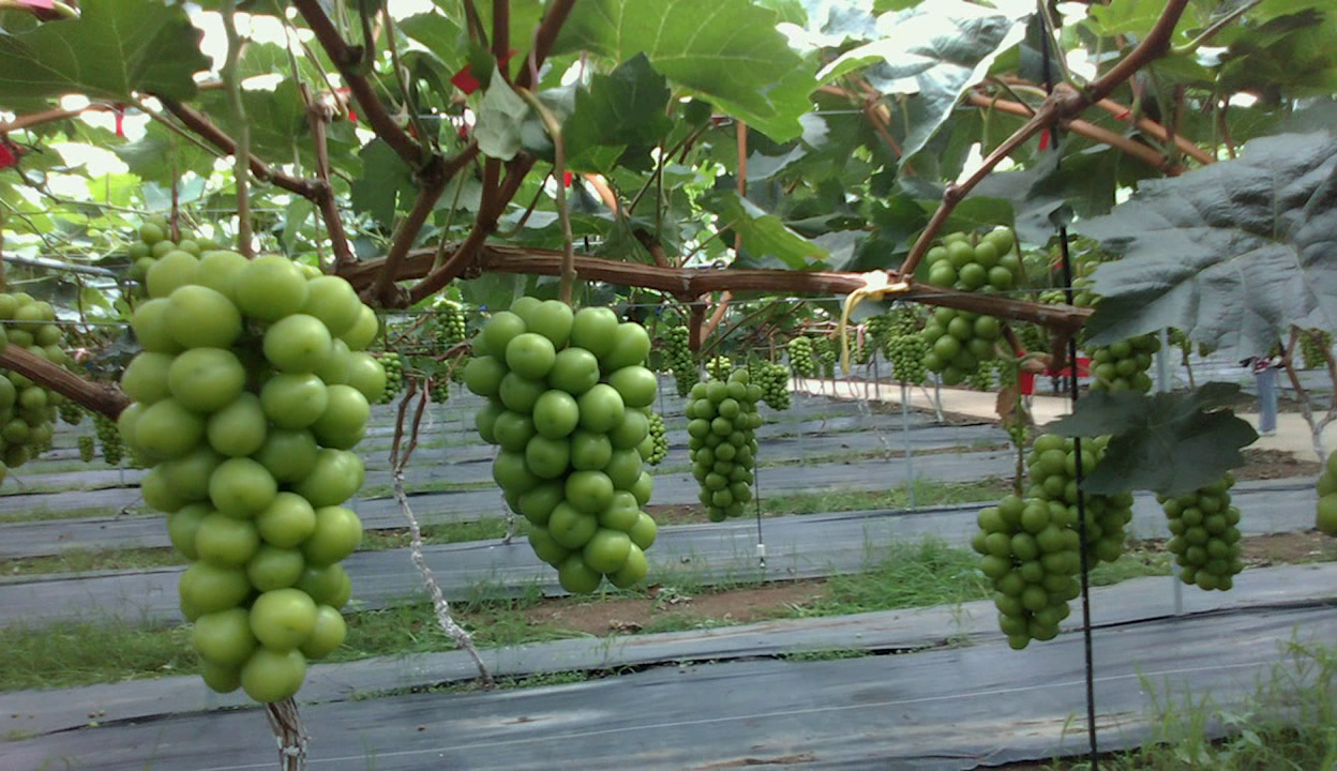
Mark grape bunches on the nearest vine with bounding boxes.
[466,296,658,593]
[970,494,1082,650]
[117,251,385,702]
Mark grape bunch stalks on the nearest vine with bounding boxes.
[1016,365,1024,499]
[512,84,575,304]
[221,4,254,257]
